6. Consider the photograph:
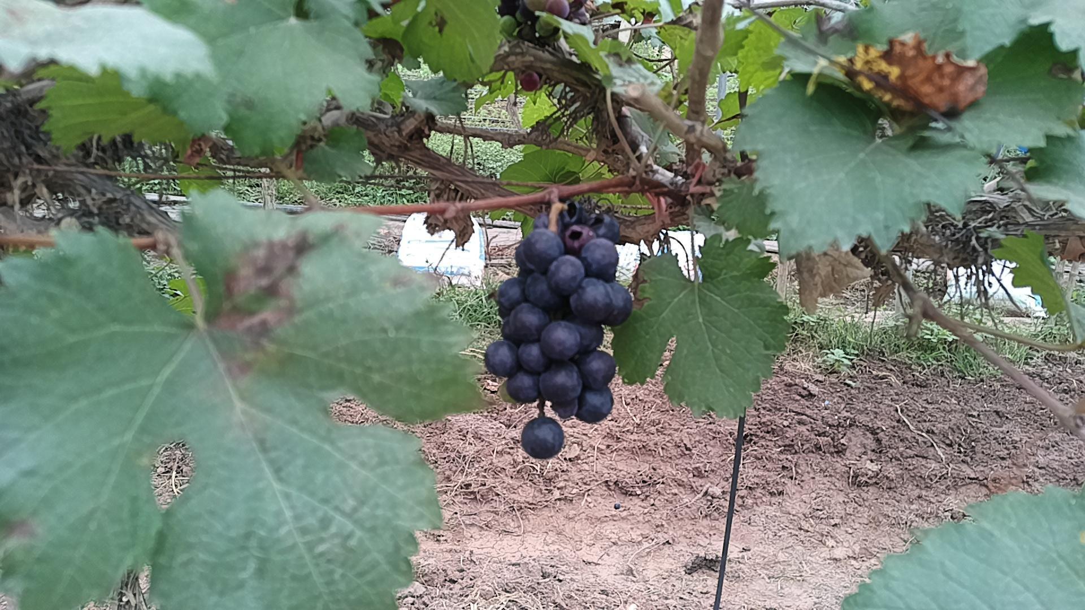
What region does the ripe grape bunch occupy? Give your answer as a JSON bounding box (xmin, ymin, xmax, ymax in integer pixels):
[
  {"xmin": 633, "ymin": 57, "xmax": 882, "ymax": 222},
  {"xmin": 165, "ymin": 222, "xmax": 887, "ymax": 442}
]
[{"xmin": 484, "ymin": 201, "xmax": 632, "ymax": 458}]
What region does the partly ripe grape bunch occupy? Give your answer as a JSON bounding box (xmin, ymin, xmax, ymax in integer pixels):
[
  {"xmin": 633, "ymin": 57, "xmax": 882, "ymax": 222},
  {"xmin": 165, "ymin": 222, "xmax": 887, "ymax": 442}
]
[{"xmin": 498, "ymin": 0, "xmax": 591, "ymax": 90}]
